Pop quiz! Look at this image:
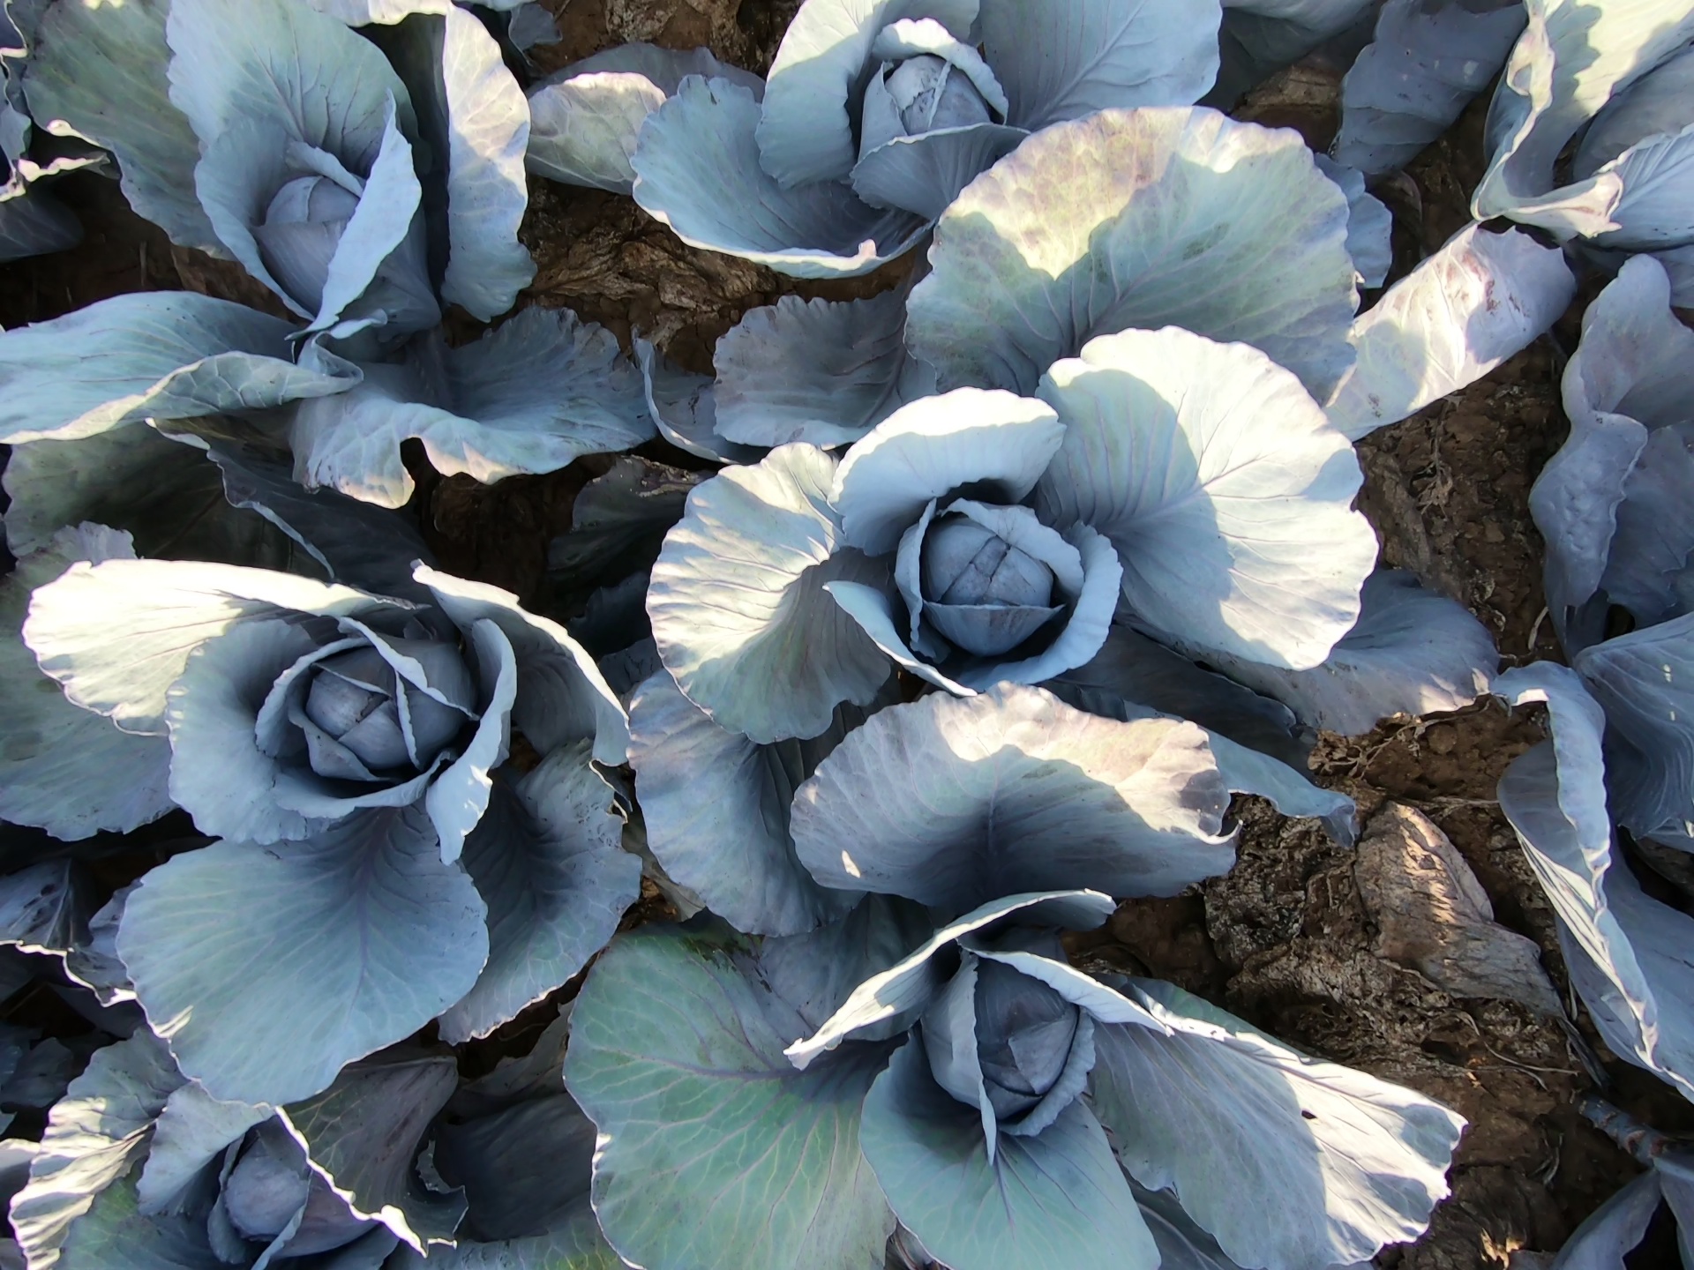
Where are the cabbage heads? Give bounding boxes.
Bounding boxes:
[875,56,993,201]
[262,174,403,305]
[1585,46,1694,250]
[919,513,1051,639]
[942,955,1076,1110]
[305,646,469,768]
[224,1096,395,1237]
